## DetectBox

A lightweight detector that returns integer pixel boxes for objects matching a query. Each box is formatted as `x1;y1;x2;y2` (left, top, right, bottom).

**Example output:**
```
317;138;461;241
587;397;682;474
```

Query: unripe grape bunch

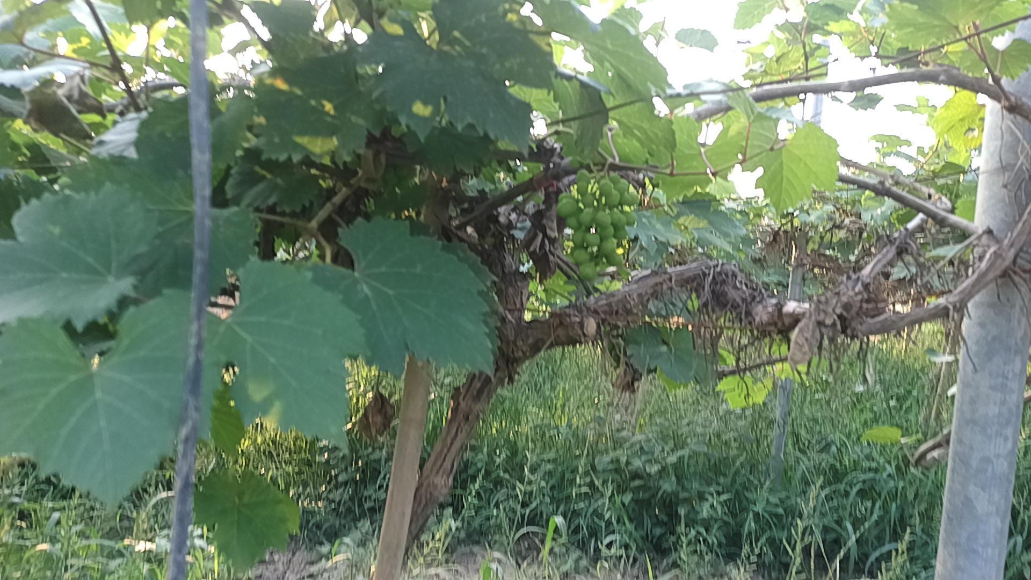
557;169;640;282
